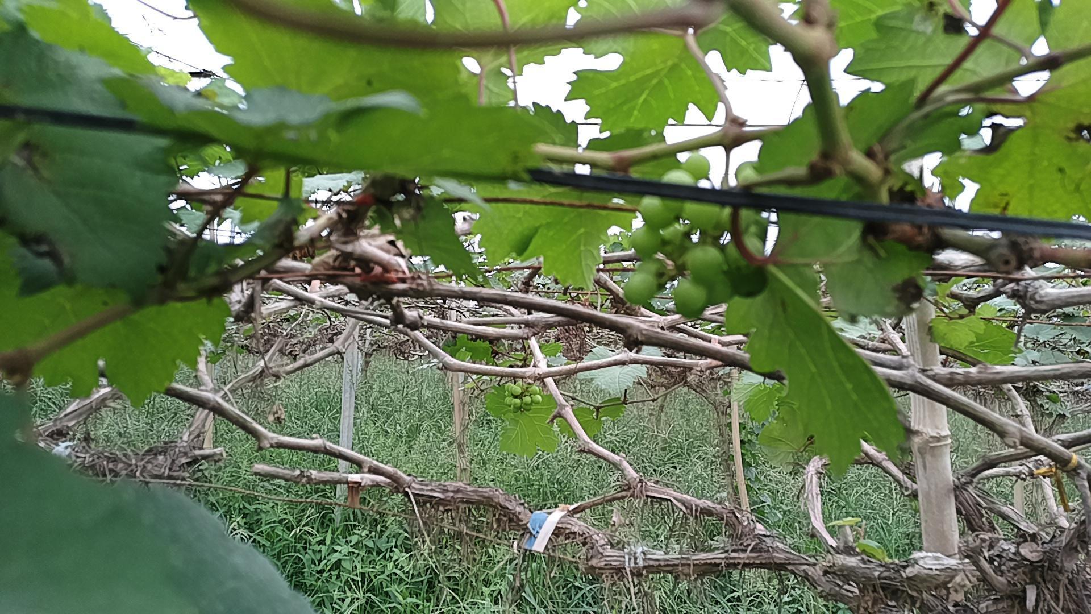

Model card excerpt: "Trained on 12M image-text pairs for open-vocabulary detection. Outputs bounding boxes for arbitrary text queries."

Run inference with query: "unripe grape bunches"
[504,381,542,413]
[623,152,768,317]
